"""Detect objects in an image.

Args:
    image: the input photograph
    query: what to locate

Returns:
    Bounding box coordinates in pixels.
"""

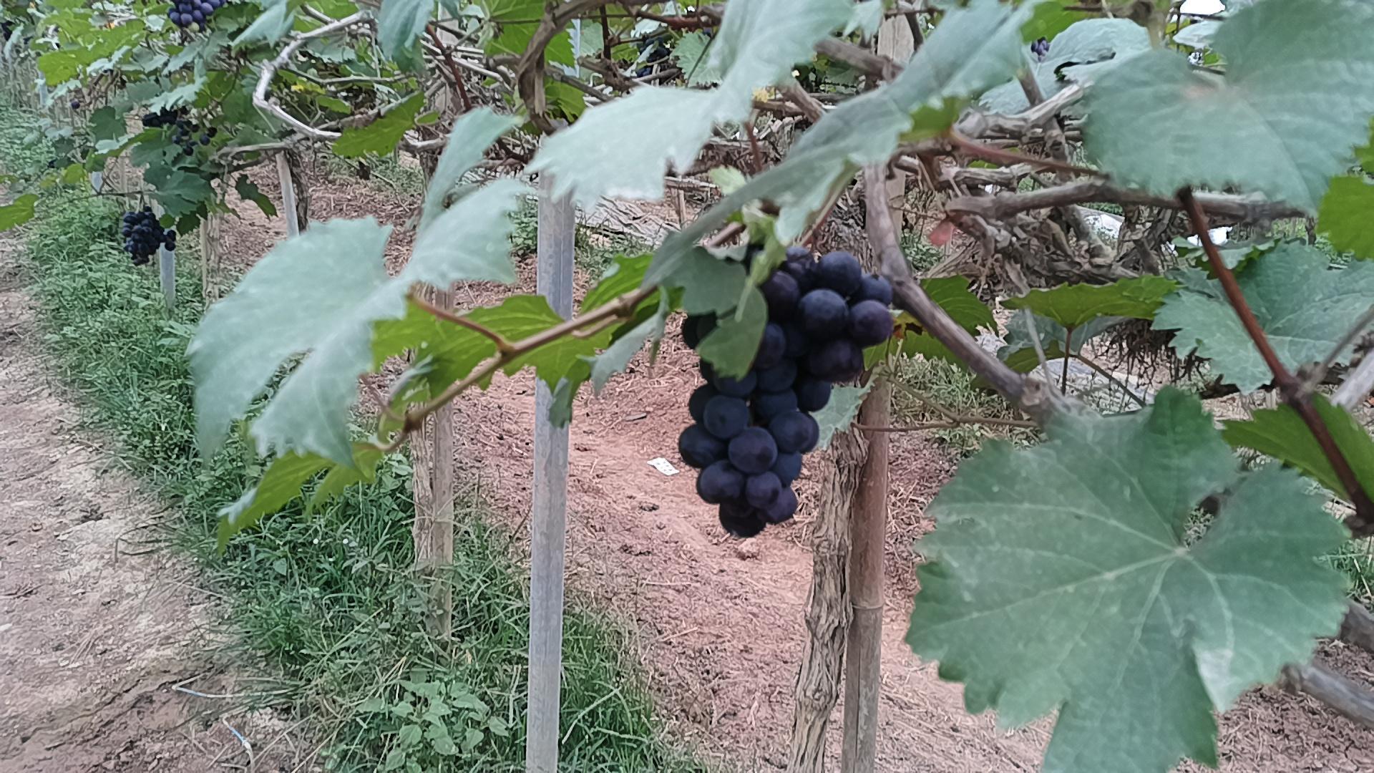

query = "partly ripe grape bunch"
[167,0,228,33]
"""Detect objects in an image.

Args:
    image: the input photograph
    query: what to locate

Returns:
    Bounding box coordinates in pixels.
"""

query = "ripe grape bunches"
[678,248,892,536]
[634,31,673,77]
[142,107,217,155]
[120,205,177,266]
